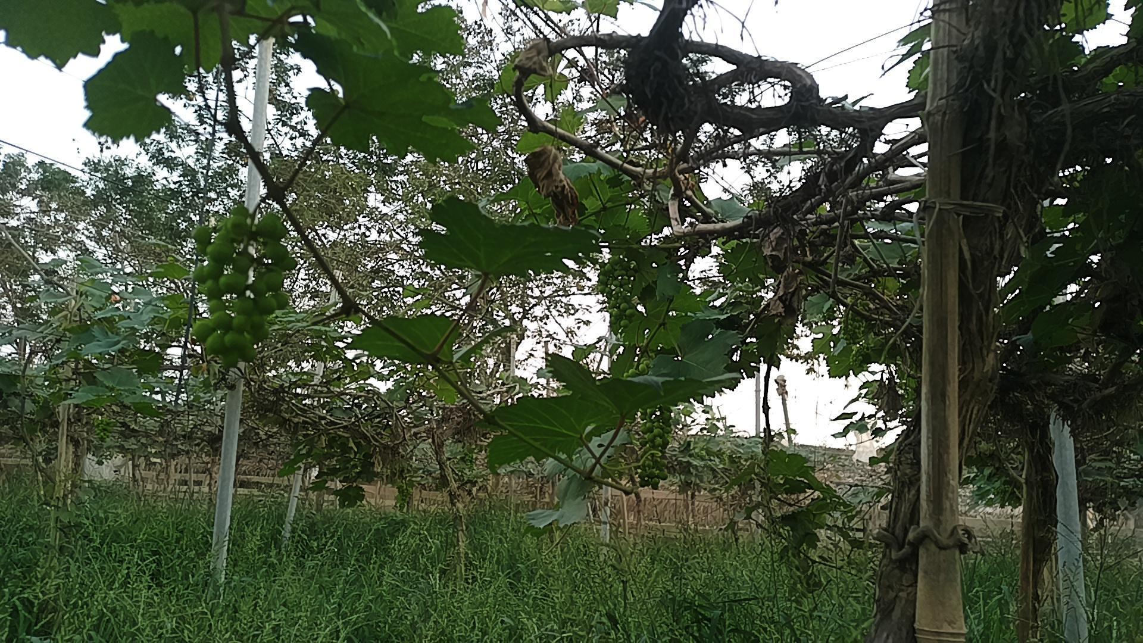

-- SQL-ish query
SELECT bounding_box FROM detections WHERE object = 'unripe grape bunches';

[636,406,672,488]
[838,294,872,345]
[598,255,632,332]
[623,357,651,378]
[850,344,870,366]
[193,205,295,369]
